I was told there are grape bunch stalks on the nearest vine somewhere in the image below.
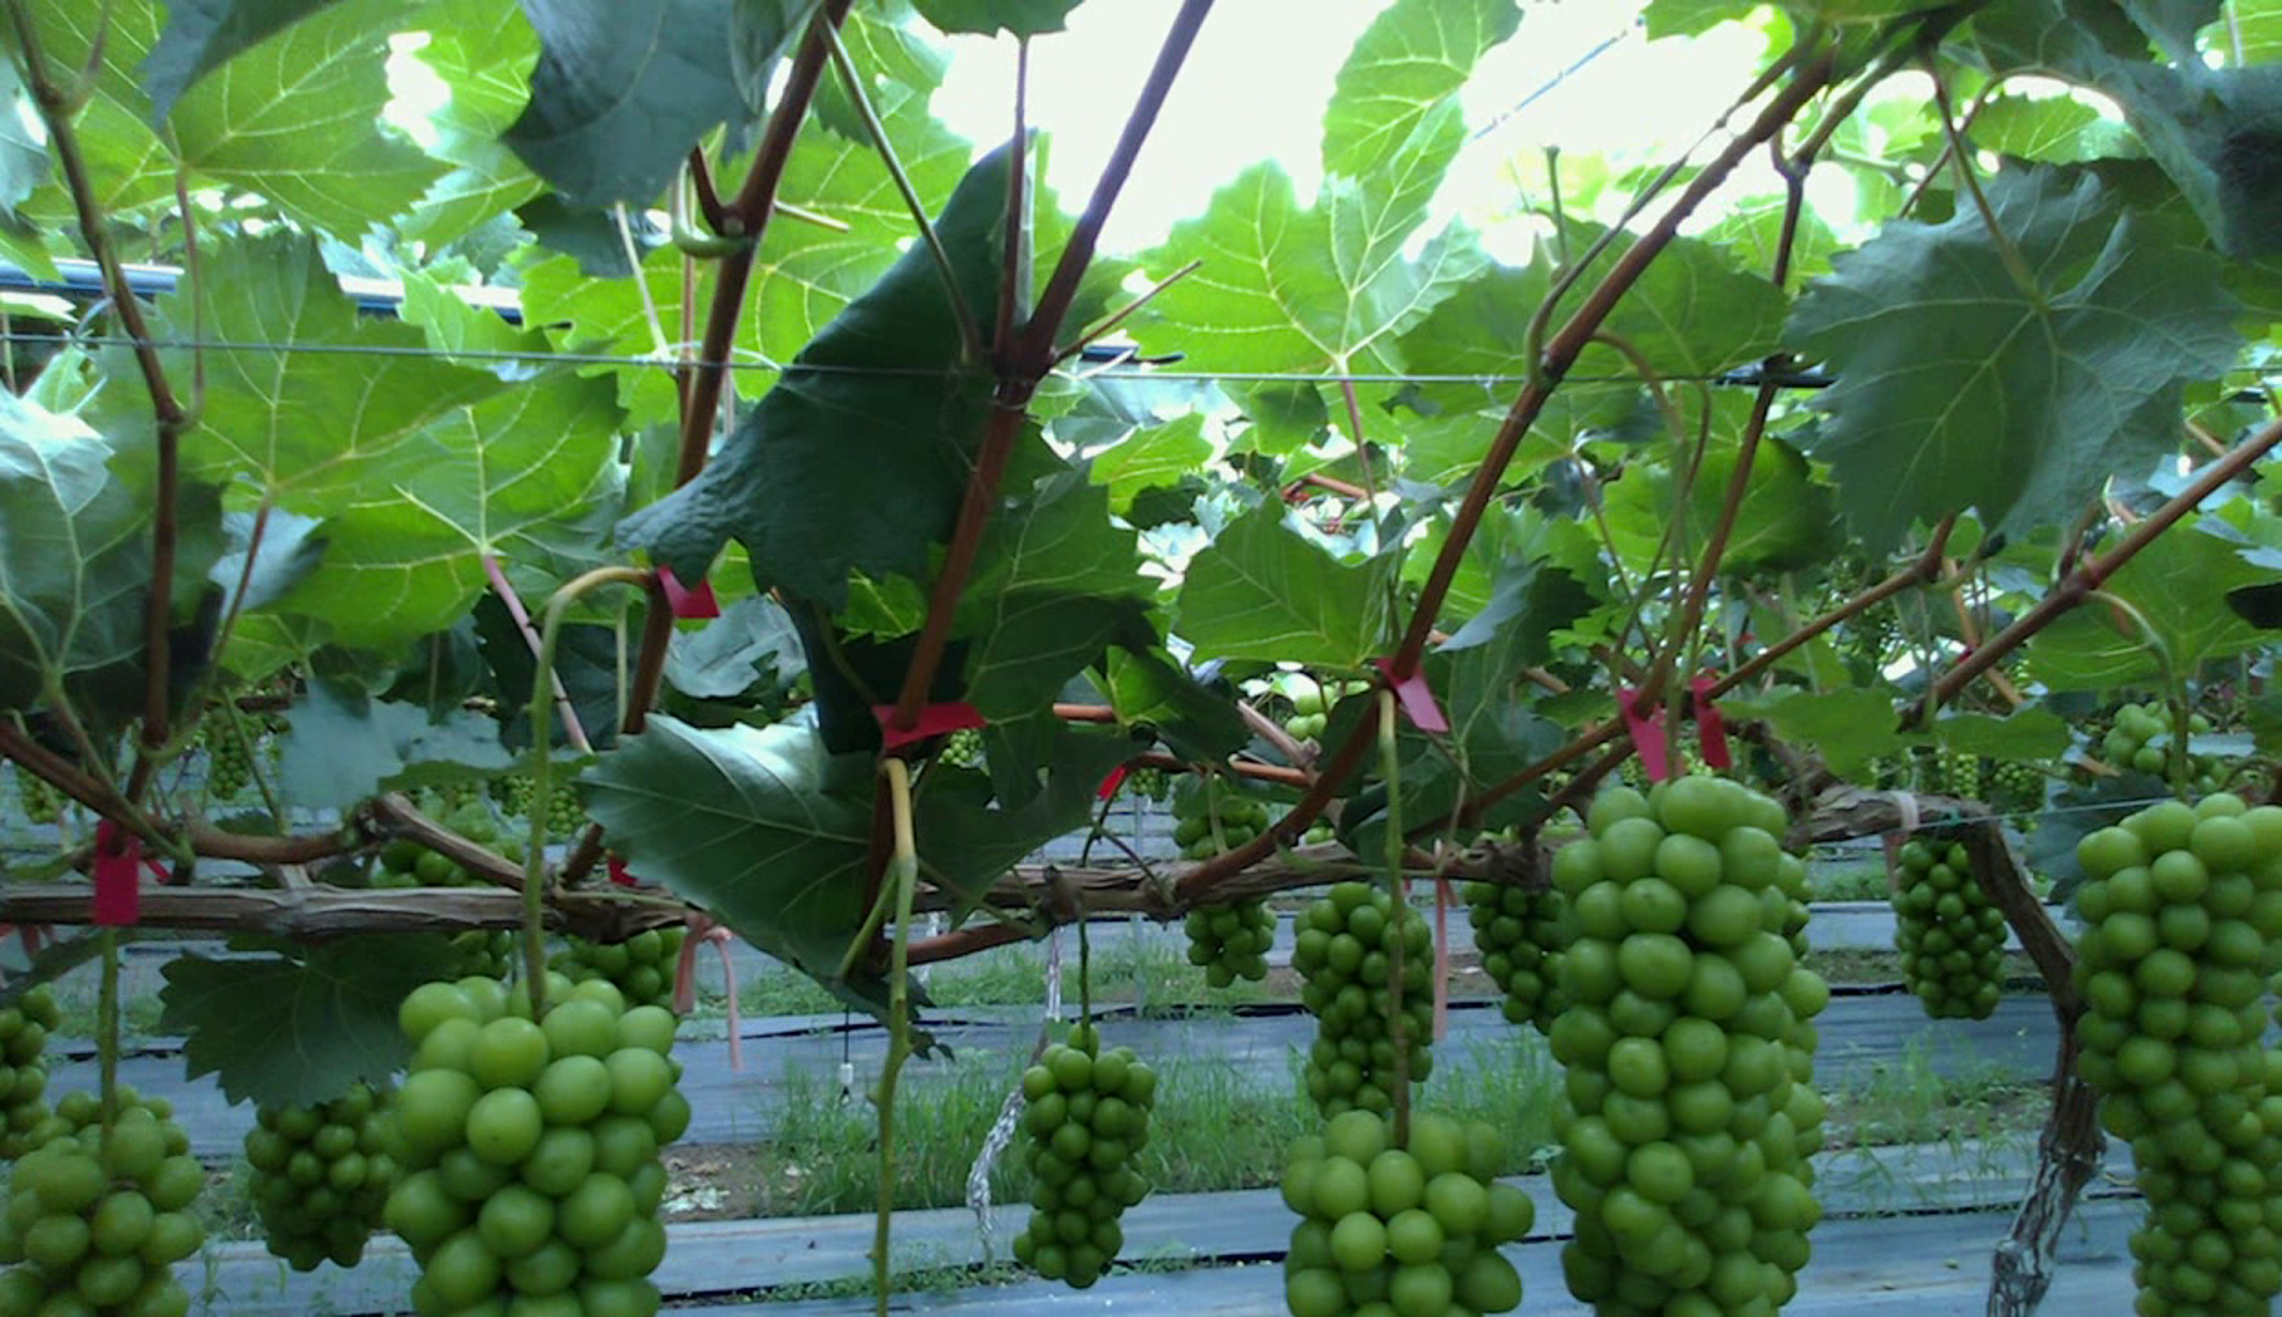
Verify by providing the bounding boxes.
[101,927,121,1185]
[521,565,649,1026]
[1381,693,1408,1154]
[2088,589,2189,803]
[1593,333,1691,783]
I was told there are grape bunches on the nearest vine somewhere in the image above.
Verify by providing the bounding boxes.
[1547,774,1829,1315]
[382,971,693,1315]
[1278,1108,1534,1315]
[0,1087,208,1315]
[2070,792,2280,1163]
[2127,1044,2280,1315]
